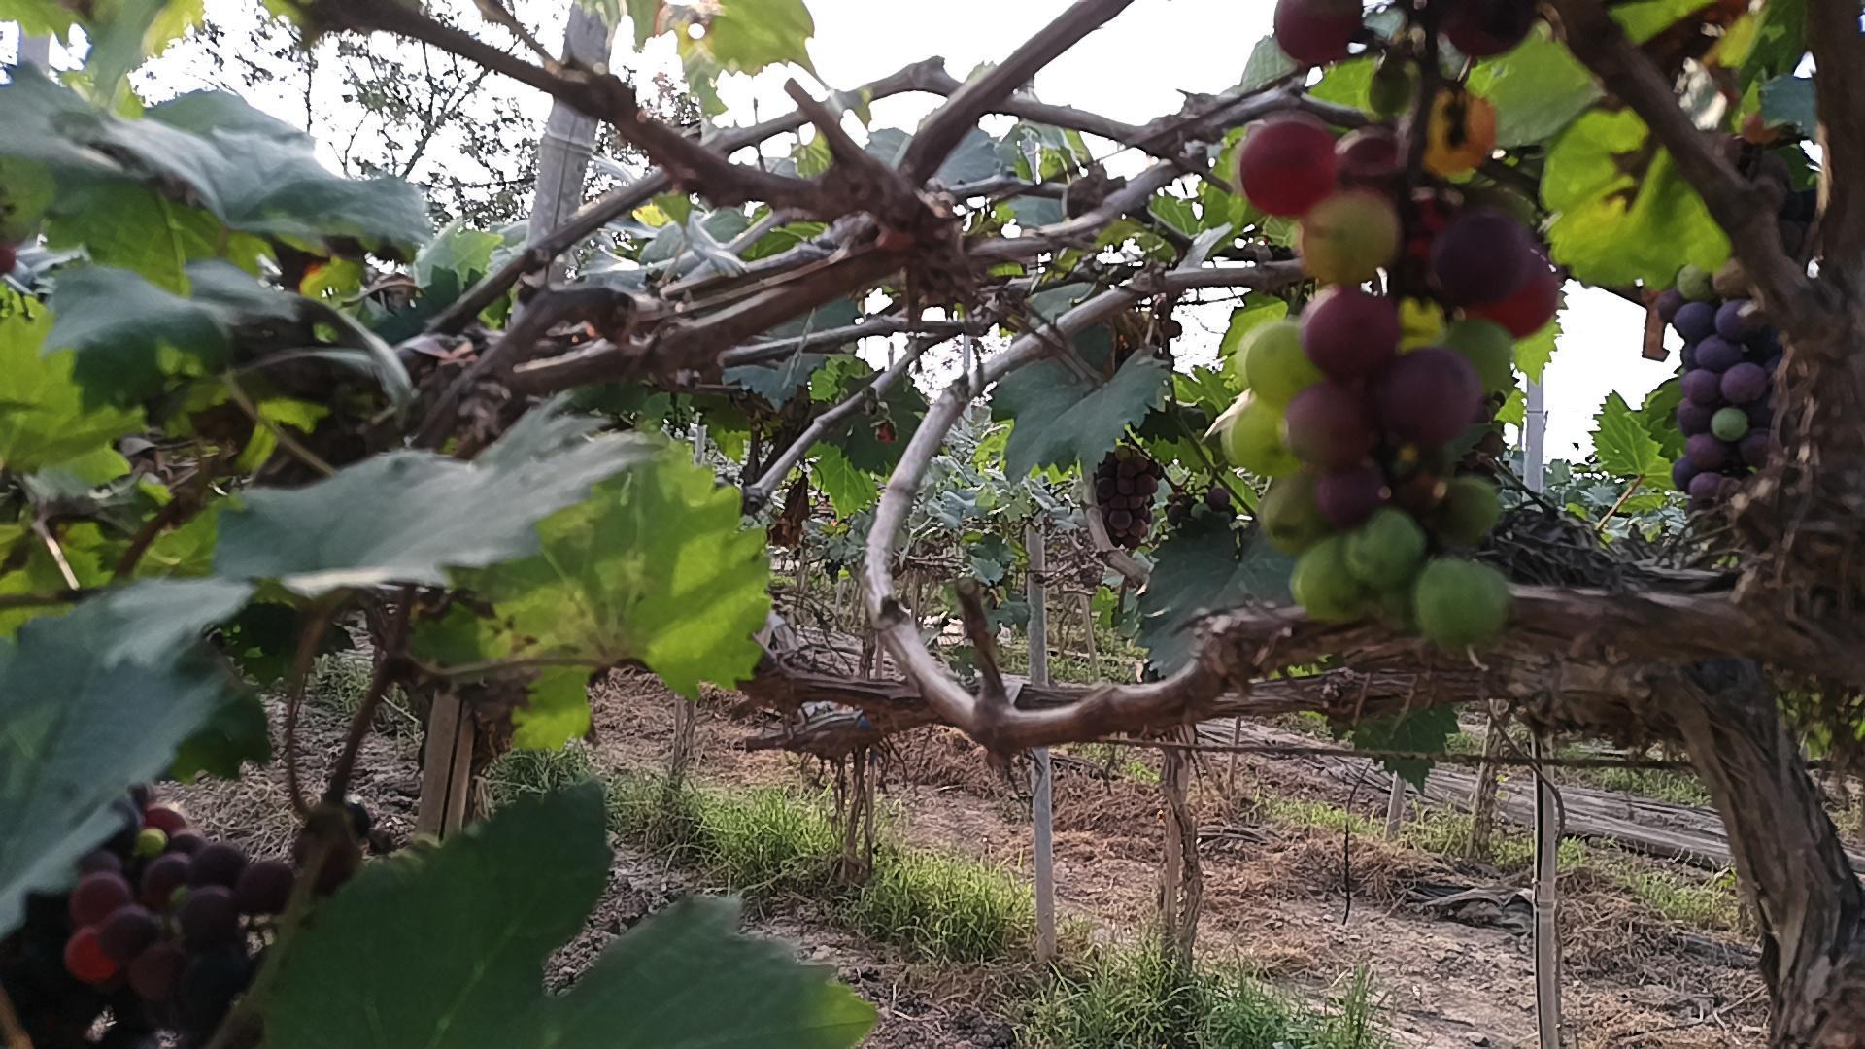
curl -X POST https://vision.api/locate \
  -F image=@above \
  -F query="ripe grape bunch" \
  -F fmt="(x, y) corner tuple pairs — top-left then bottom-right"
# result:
(1753, 154), (1820, 255)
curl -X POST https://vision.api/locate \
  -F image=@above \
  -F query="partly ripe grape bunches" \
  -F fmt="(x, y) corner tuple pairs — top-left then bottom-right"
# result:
(1652, 263), (1796, 540)
(1226, 0), (1569, 649)
(1164, 486), (1243, 536)
(1093, 445), (1164, 550)
(0, 780), (370, 1048)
